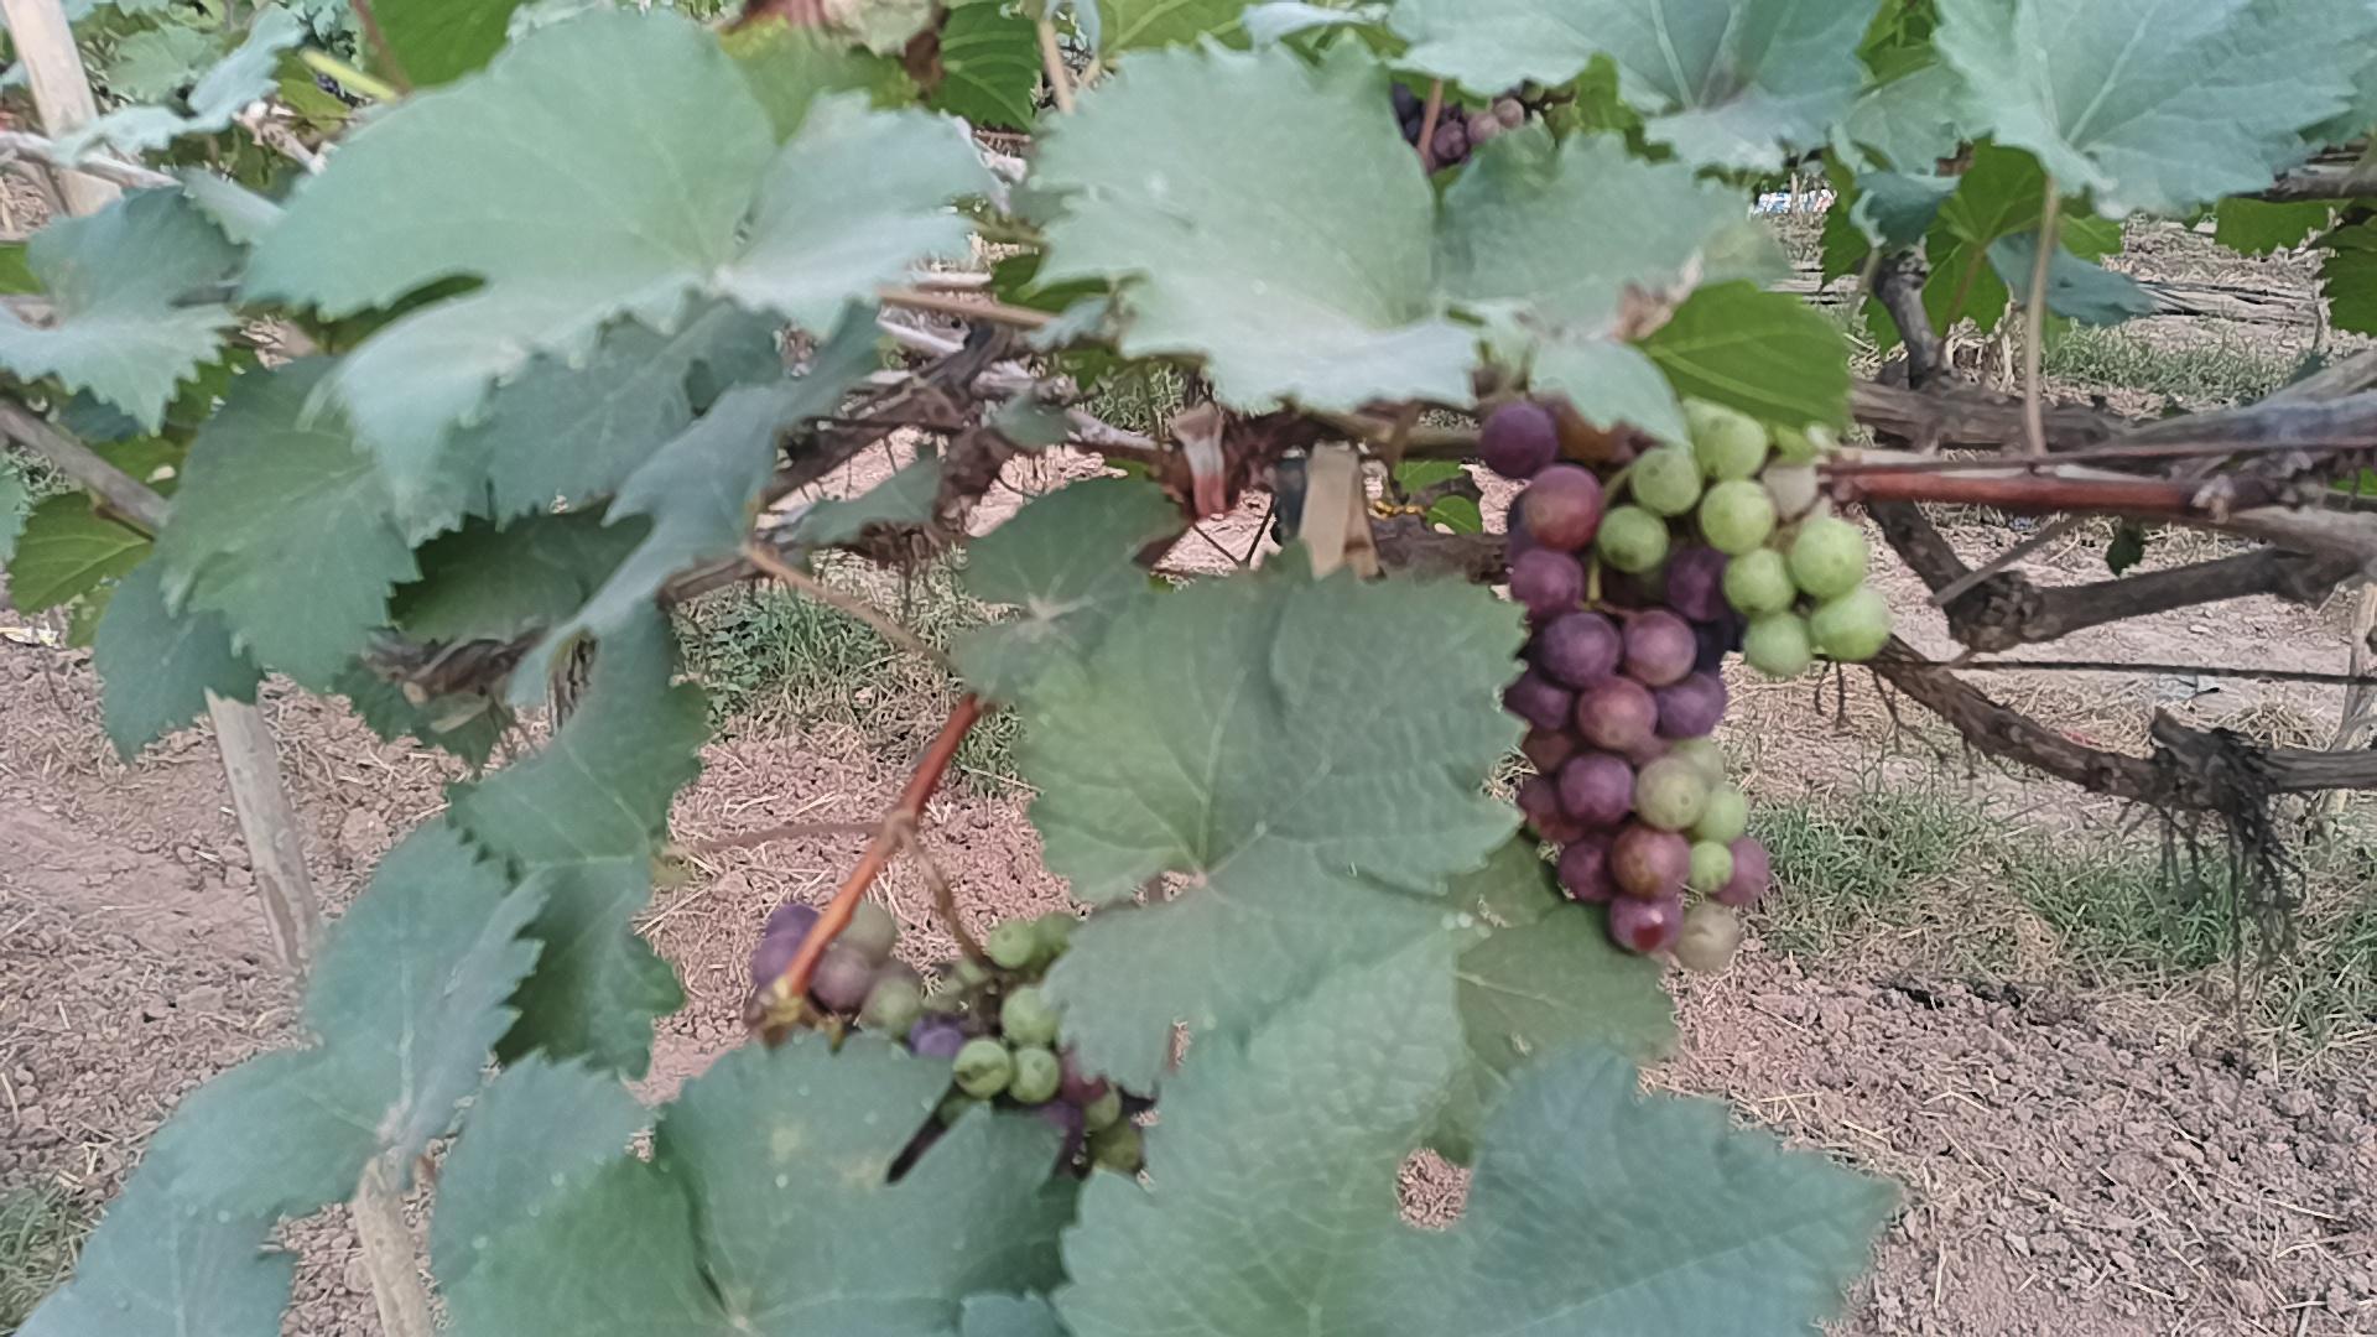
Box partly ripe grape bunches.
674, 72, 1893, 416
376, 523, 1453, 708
1393, 83, 1575, 172
747, 896, 1148, 1180
1479, 402, 1889, 968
